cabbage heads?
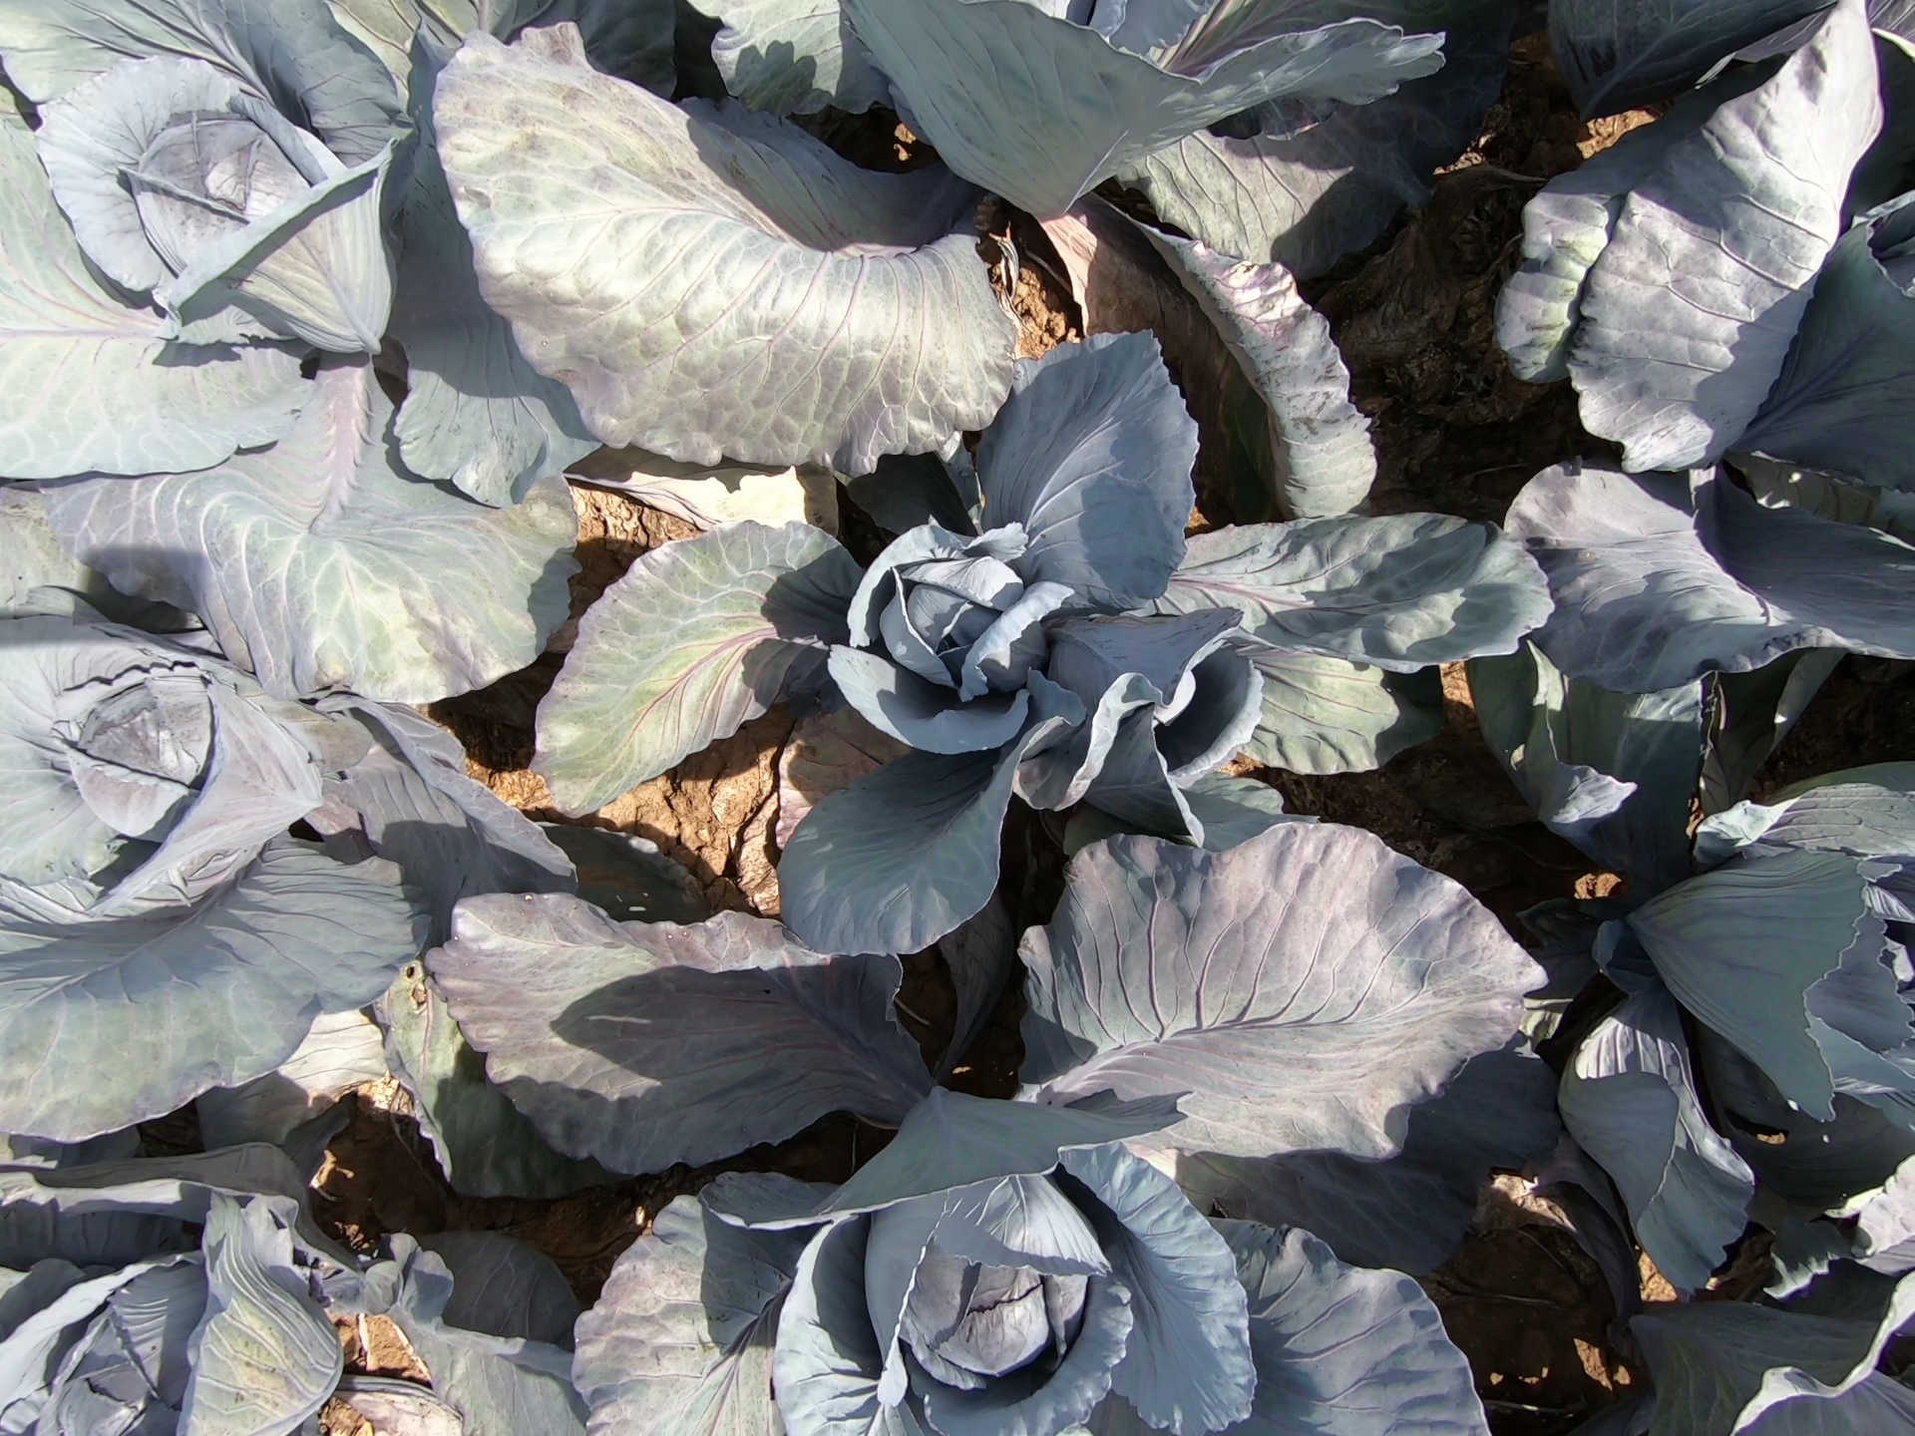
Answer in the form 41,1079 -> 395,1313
1704,892 -> 1912,1037
70,672 -> 293,847
898,570 -> 1024,683
870,1158 -> 1092,1379
48,1256 -> 317,1434
129,117 -> 364,310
